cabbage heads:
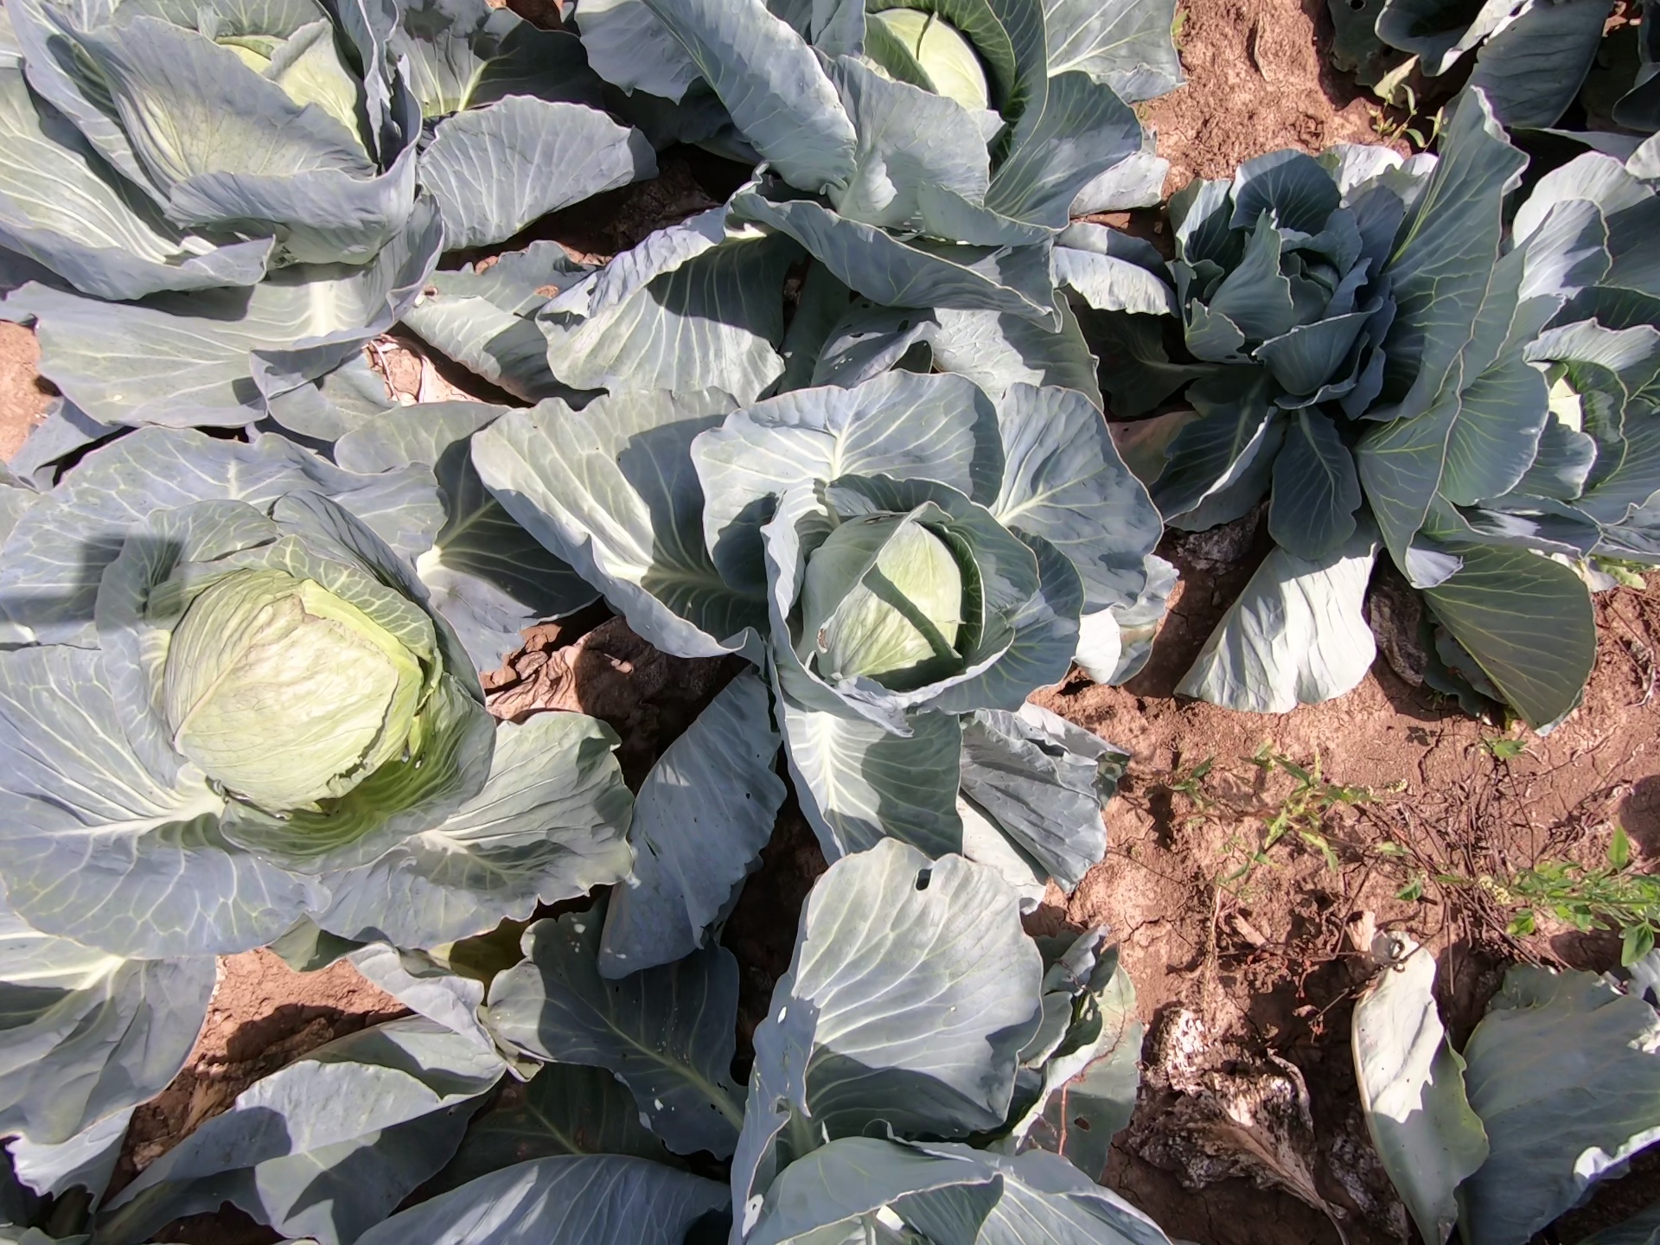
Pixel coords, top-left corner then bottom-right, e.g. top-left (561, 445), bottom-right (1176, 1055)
top-left (831, 3), bottom-right (991, 174)
top-left (161, 555), bottom-right (426, 798)
top-left (141, 32), bottom-right (380, 216)
top-left (1472, 360), bottom-right (1586, 480)
top-left (808, 512), bottom-right (965, 693)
